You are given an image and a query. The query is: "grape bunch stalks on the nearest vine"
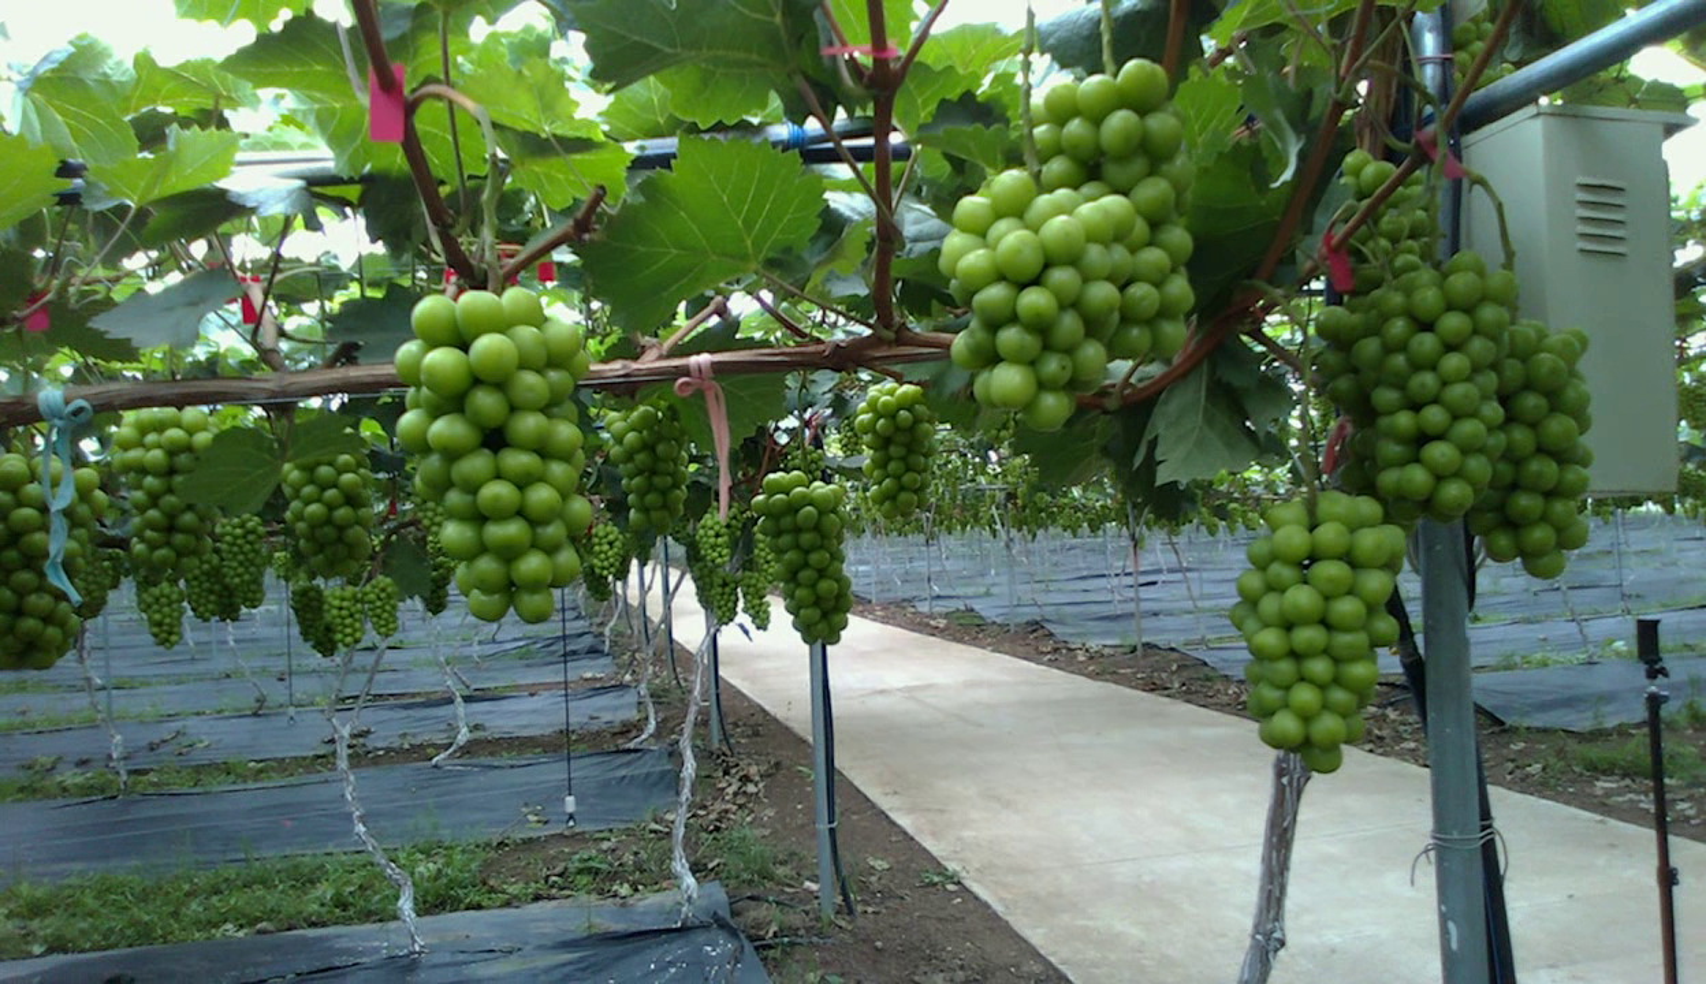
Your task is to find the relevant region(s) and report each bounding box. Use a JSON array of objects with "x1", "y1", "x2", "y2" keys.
[
  {"x1": 1364, "y1": 59, "x2": 1449, "y2": 268},
  {"x1": 409, "y1": 85, "x2": 502, "y2": 297},
  {"x1": 1099, "y1": 1, "x2": 1115, "y2": 78},
  {"x1": 1020, "y1": 5, "x2": 1046, "y2": 193},
  {"x1": 1238, "y1": 279, "x2": 1319, "y2": 532}
]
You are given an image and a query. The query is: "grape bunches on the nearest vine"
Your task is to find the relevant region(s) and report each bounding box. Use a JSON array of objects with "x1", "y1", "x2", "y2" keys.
[
  {"x1": 394, "y1": 287, "x2": 593, "y2": 625},
  {"x1": 1228, "y1": 489, "x2": 1407, "y2": 774},
  {"x1": 1470, "y1": 317, "x2": 1594, "y2": 582},
  {"x1": 939, "y1": 156, "x2": 1136, "y2": 433},
  {"x1": 1312, "y1": 247, "x2": 1517, "y2": 528},
  {"x1": 1032, "y1": 59, "x2": 1197, "y2": 359}
]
